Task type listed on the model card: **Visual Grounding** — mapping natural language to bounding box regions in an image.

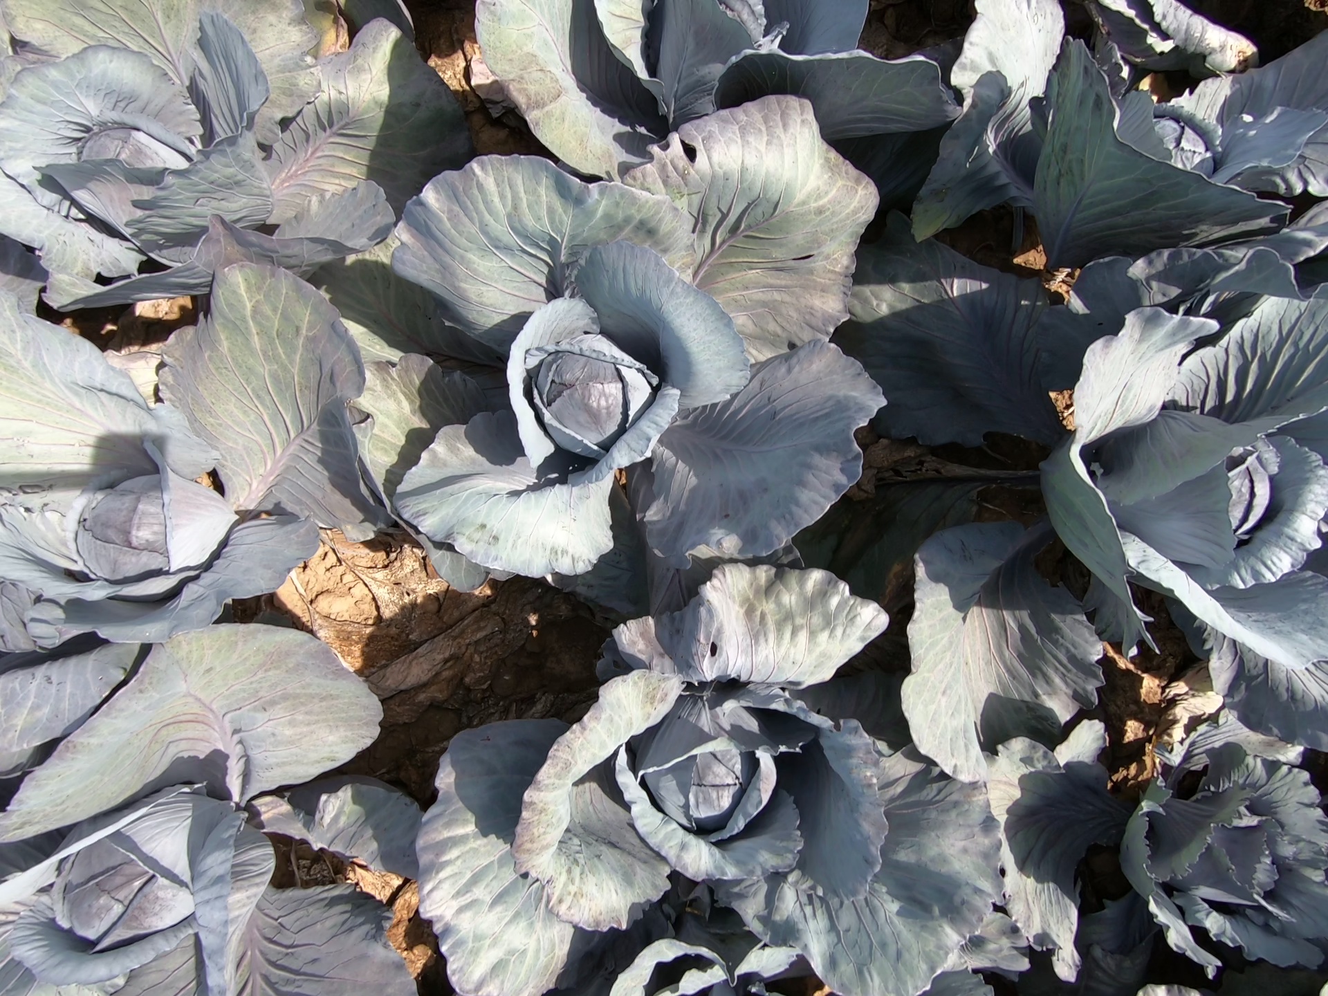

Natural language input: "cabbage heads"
[1114,416,1273,546]
[75,472,230,596]
[79,120,206,232]
[1158,807,1270,907]
[57,793,232,946]
[1098,114,1214,221]
[536,334,655,457]
[658,1,753,120]
[645,699,772,833]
